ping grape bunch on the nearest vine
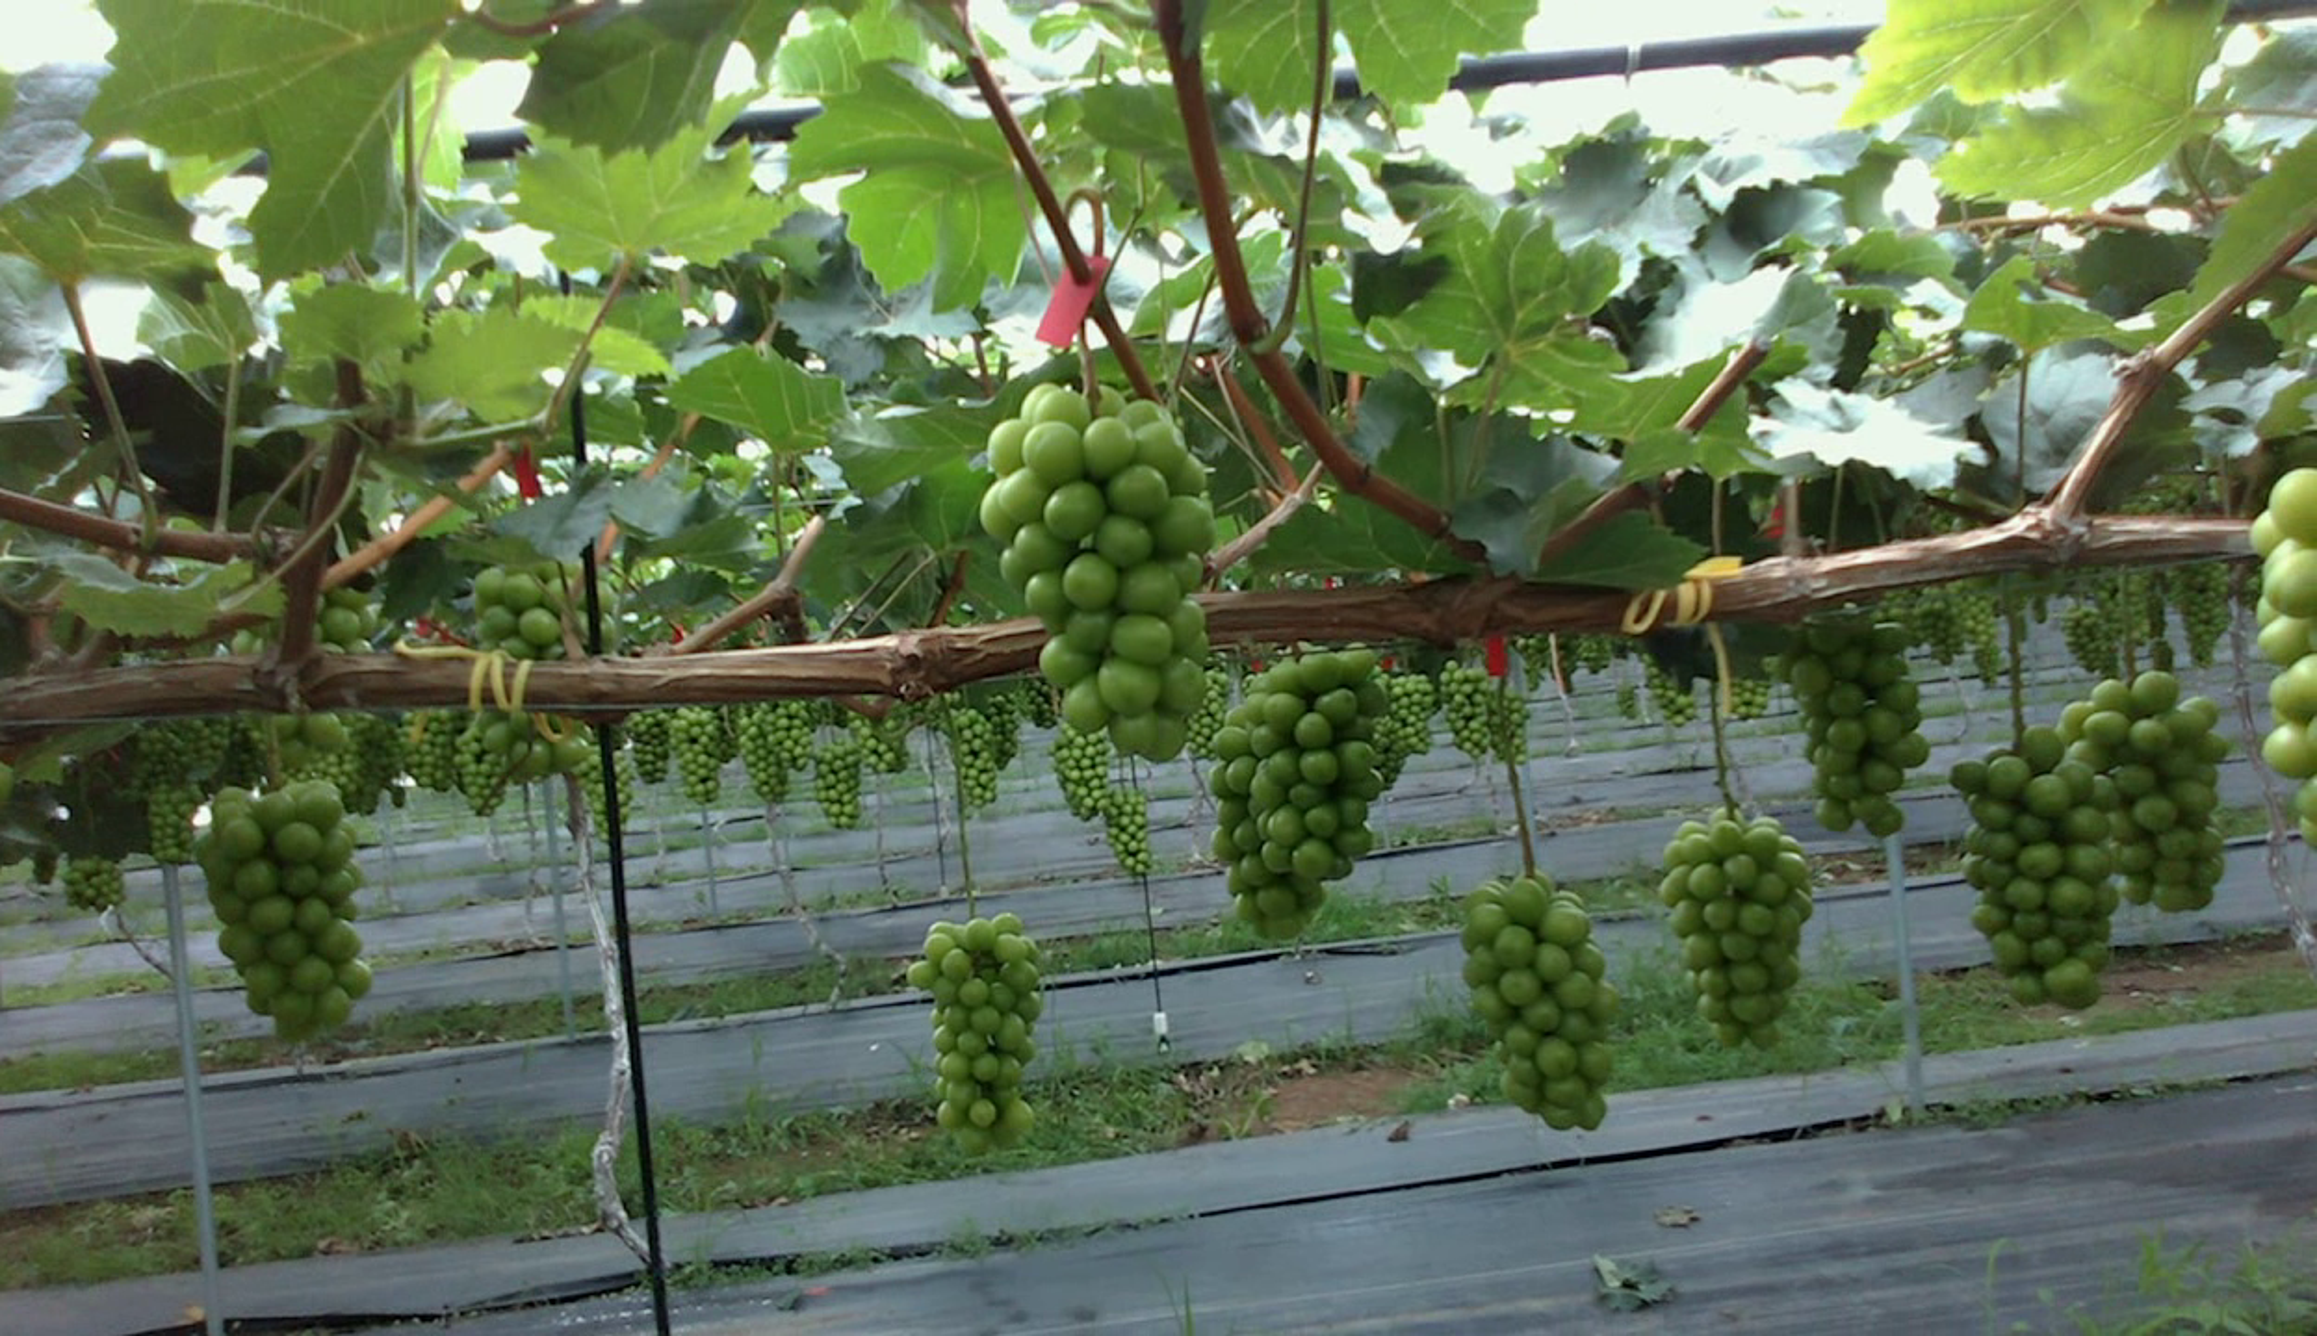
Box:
[975,382,1216,761]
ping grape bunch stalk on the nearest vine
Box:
[1077,327,1101,416]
